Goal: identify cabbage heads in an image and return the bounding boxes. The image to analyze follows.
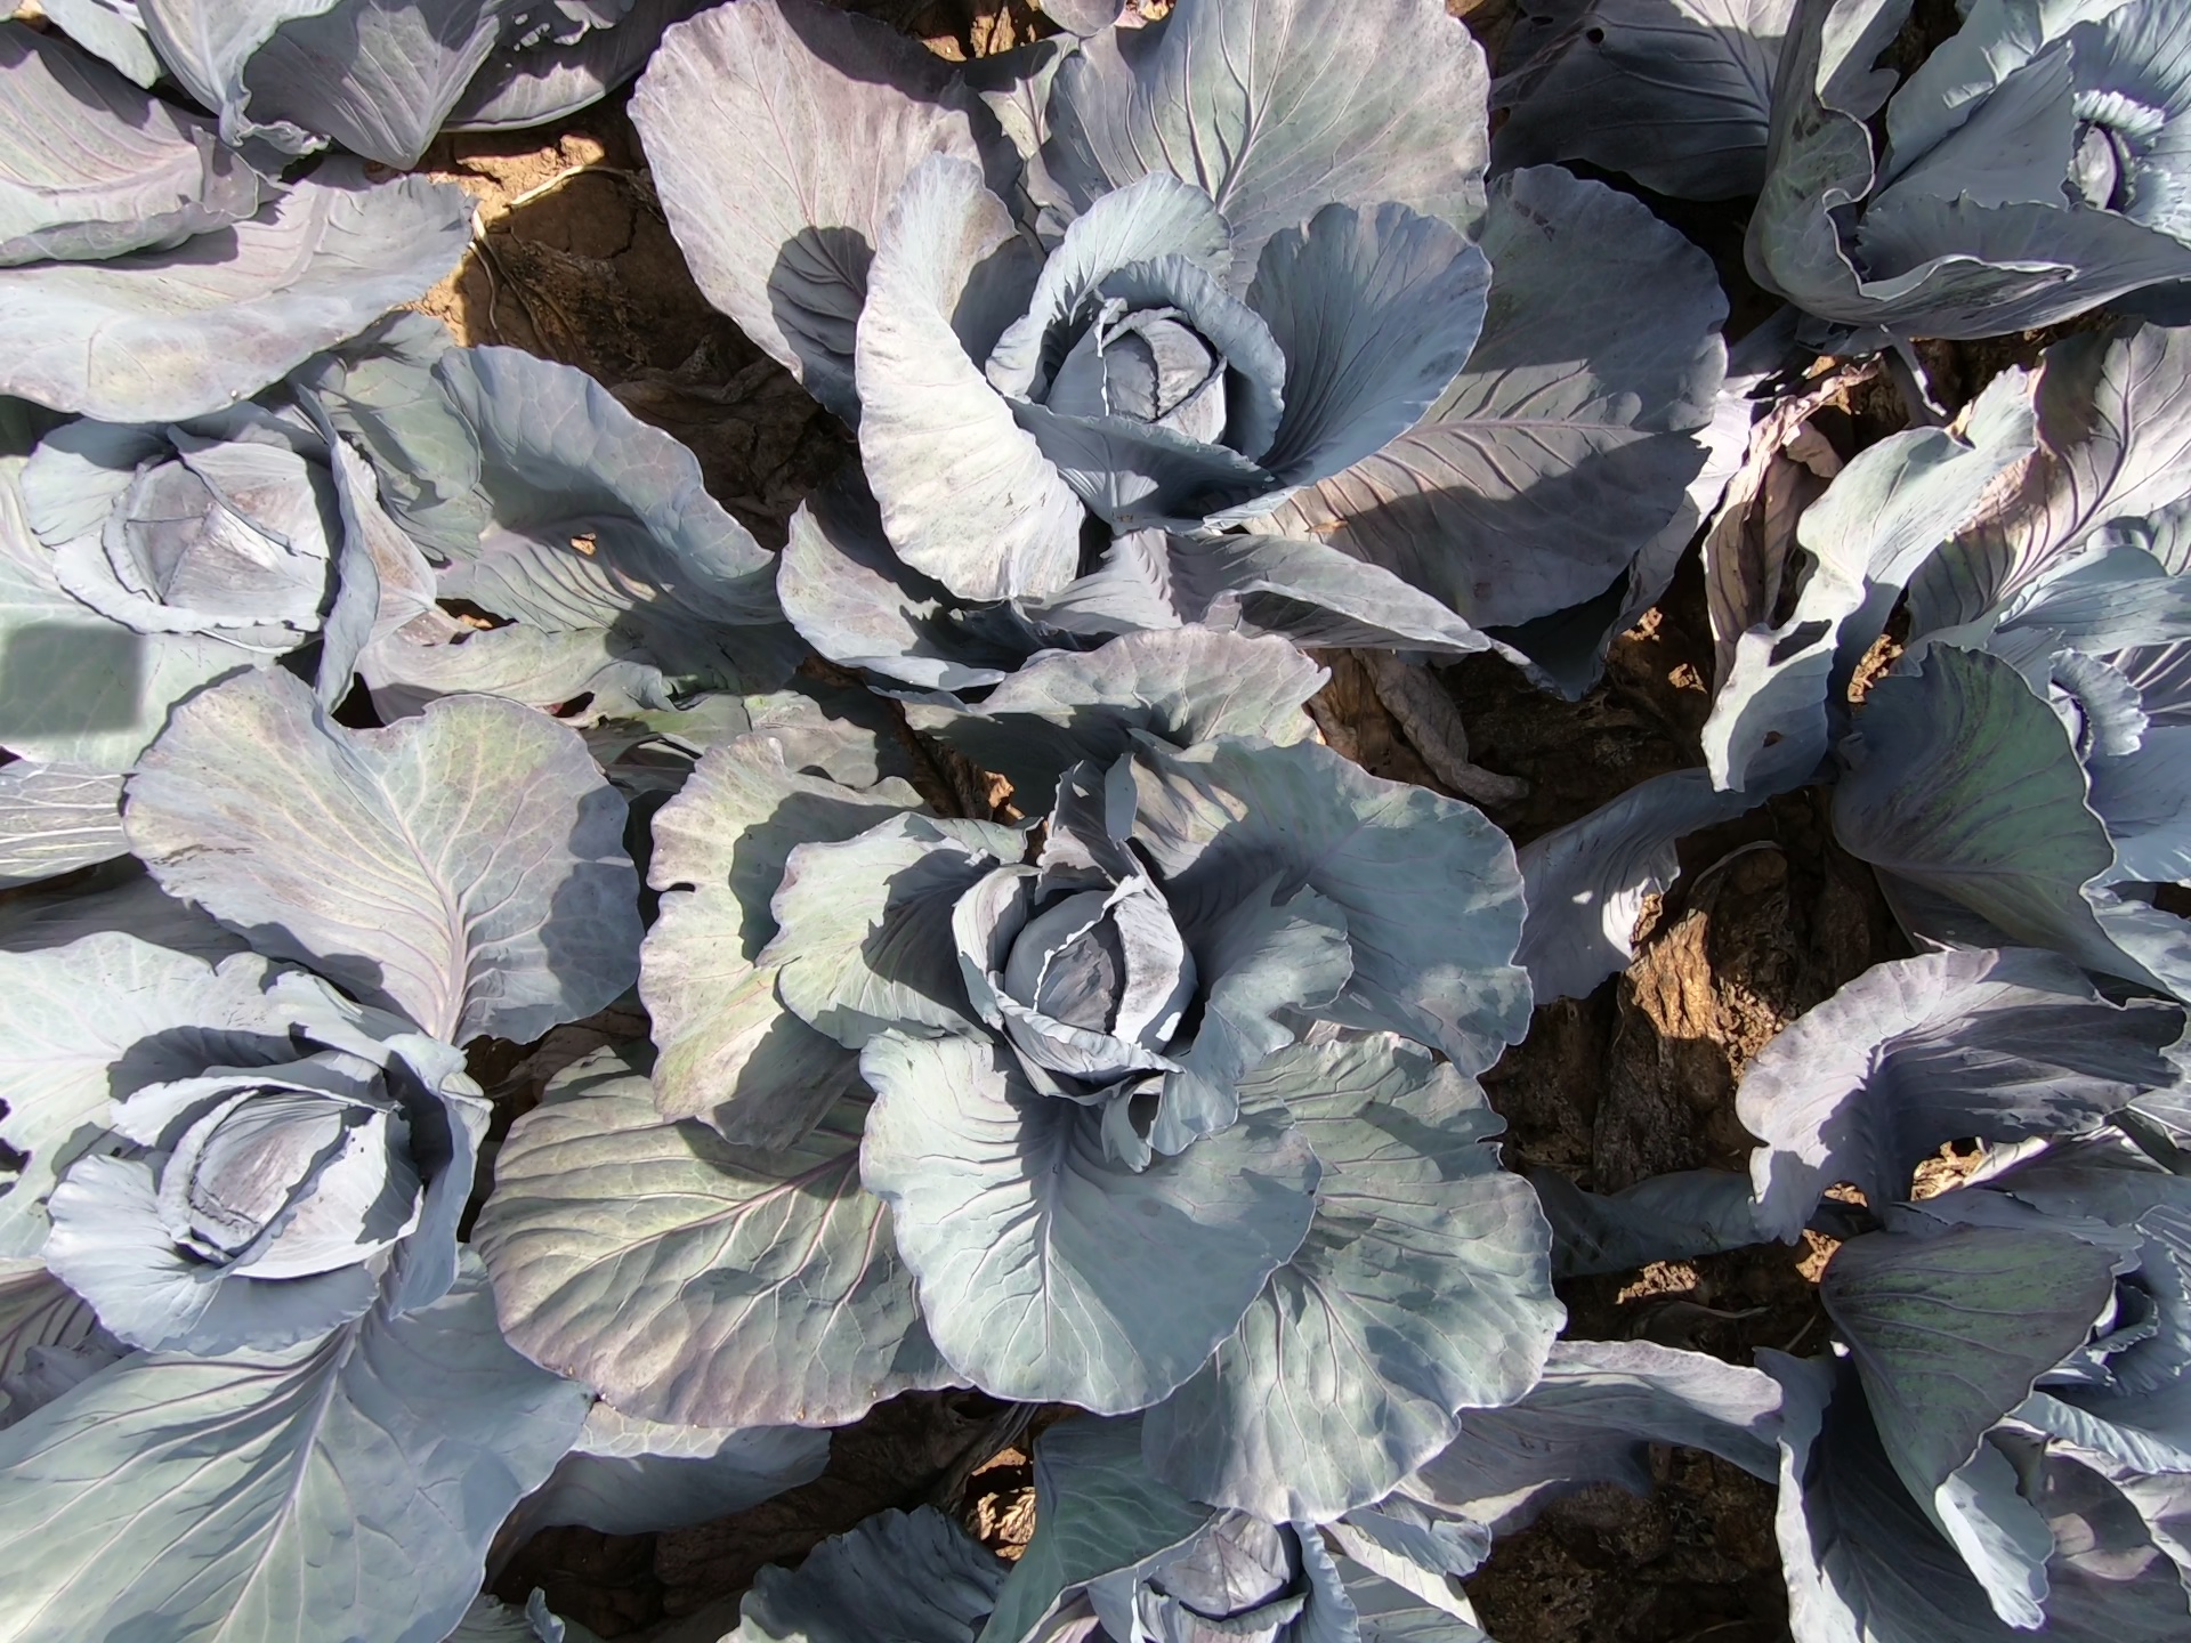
[1114,1474,1305,1625]
[177,1078,397,1279]
[1948,671,2091,801]
[116,442,370,642]
[1043,310,1226,489]
[1000,890,1198,1079]
[1999,110,2124,235]
[1971,1246,2123,1381]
